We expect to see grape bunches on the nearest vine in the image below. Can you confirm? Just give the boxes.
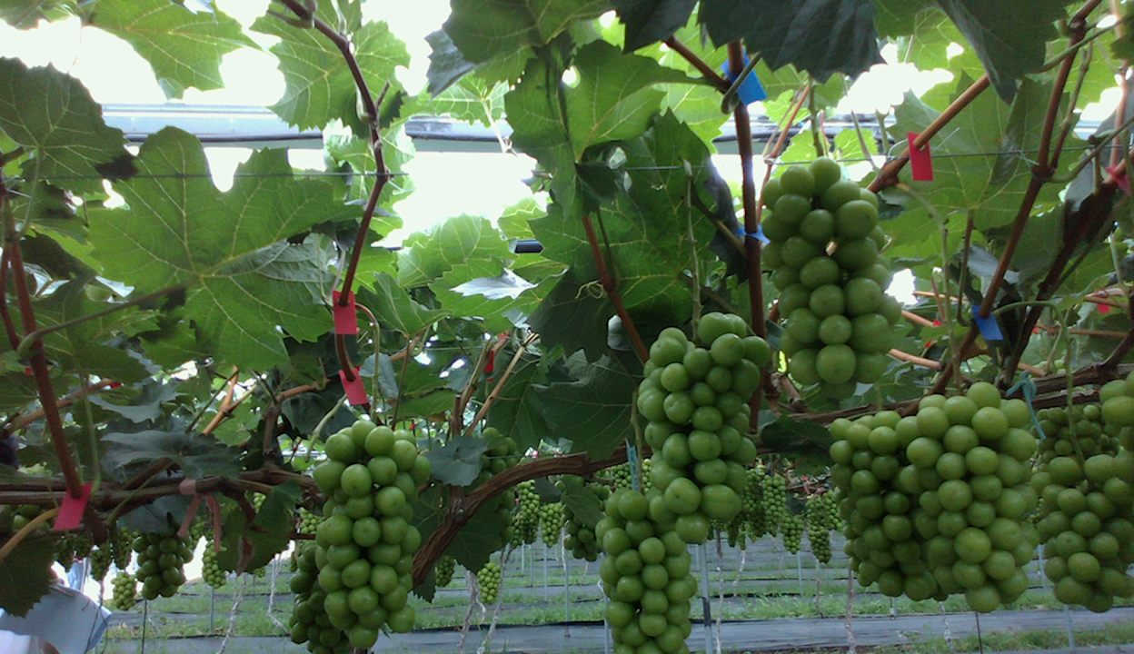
[761,156,902,399]
[595,487,696,652]
[829,411,939,601]
[637,312,771,545]
[313,420,431,650]
[894,381,1039,613]
[1029,451,1133,613]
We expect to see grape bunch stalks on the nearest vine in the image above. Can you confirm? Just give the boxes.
[993,301,1086,465]
[873,361,914,413]
[807,73,824,157]
[893,182,963,395]
[355,302,380,424]
[678,157,705,348]
[630,386,645,495]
